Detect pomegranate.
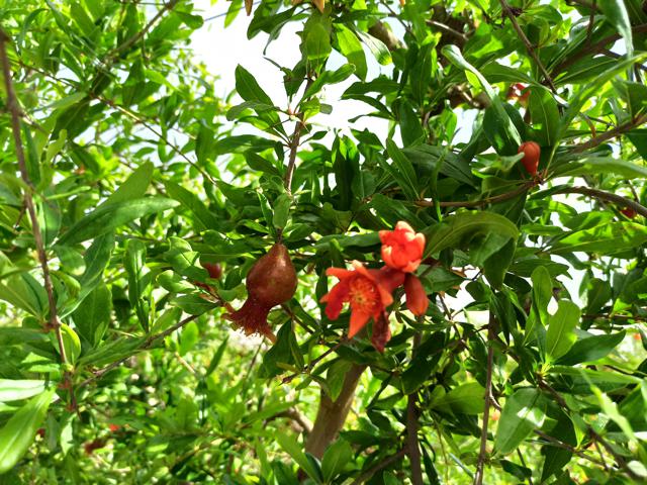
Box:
[219,243,298,342]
